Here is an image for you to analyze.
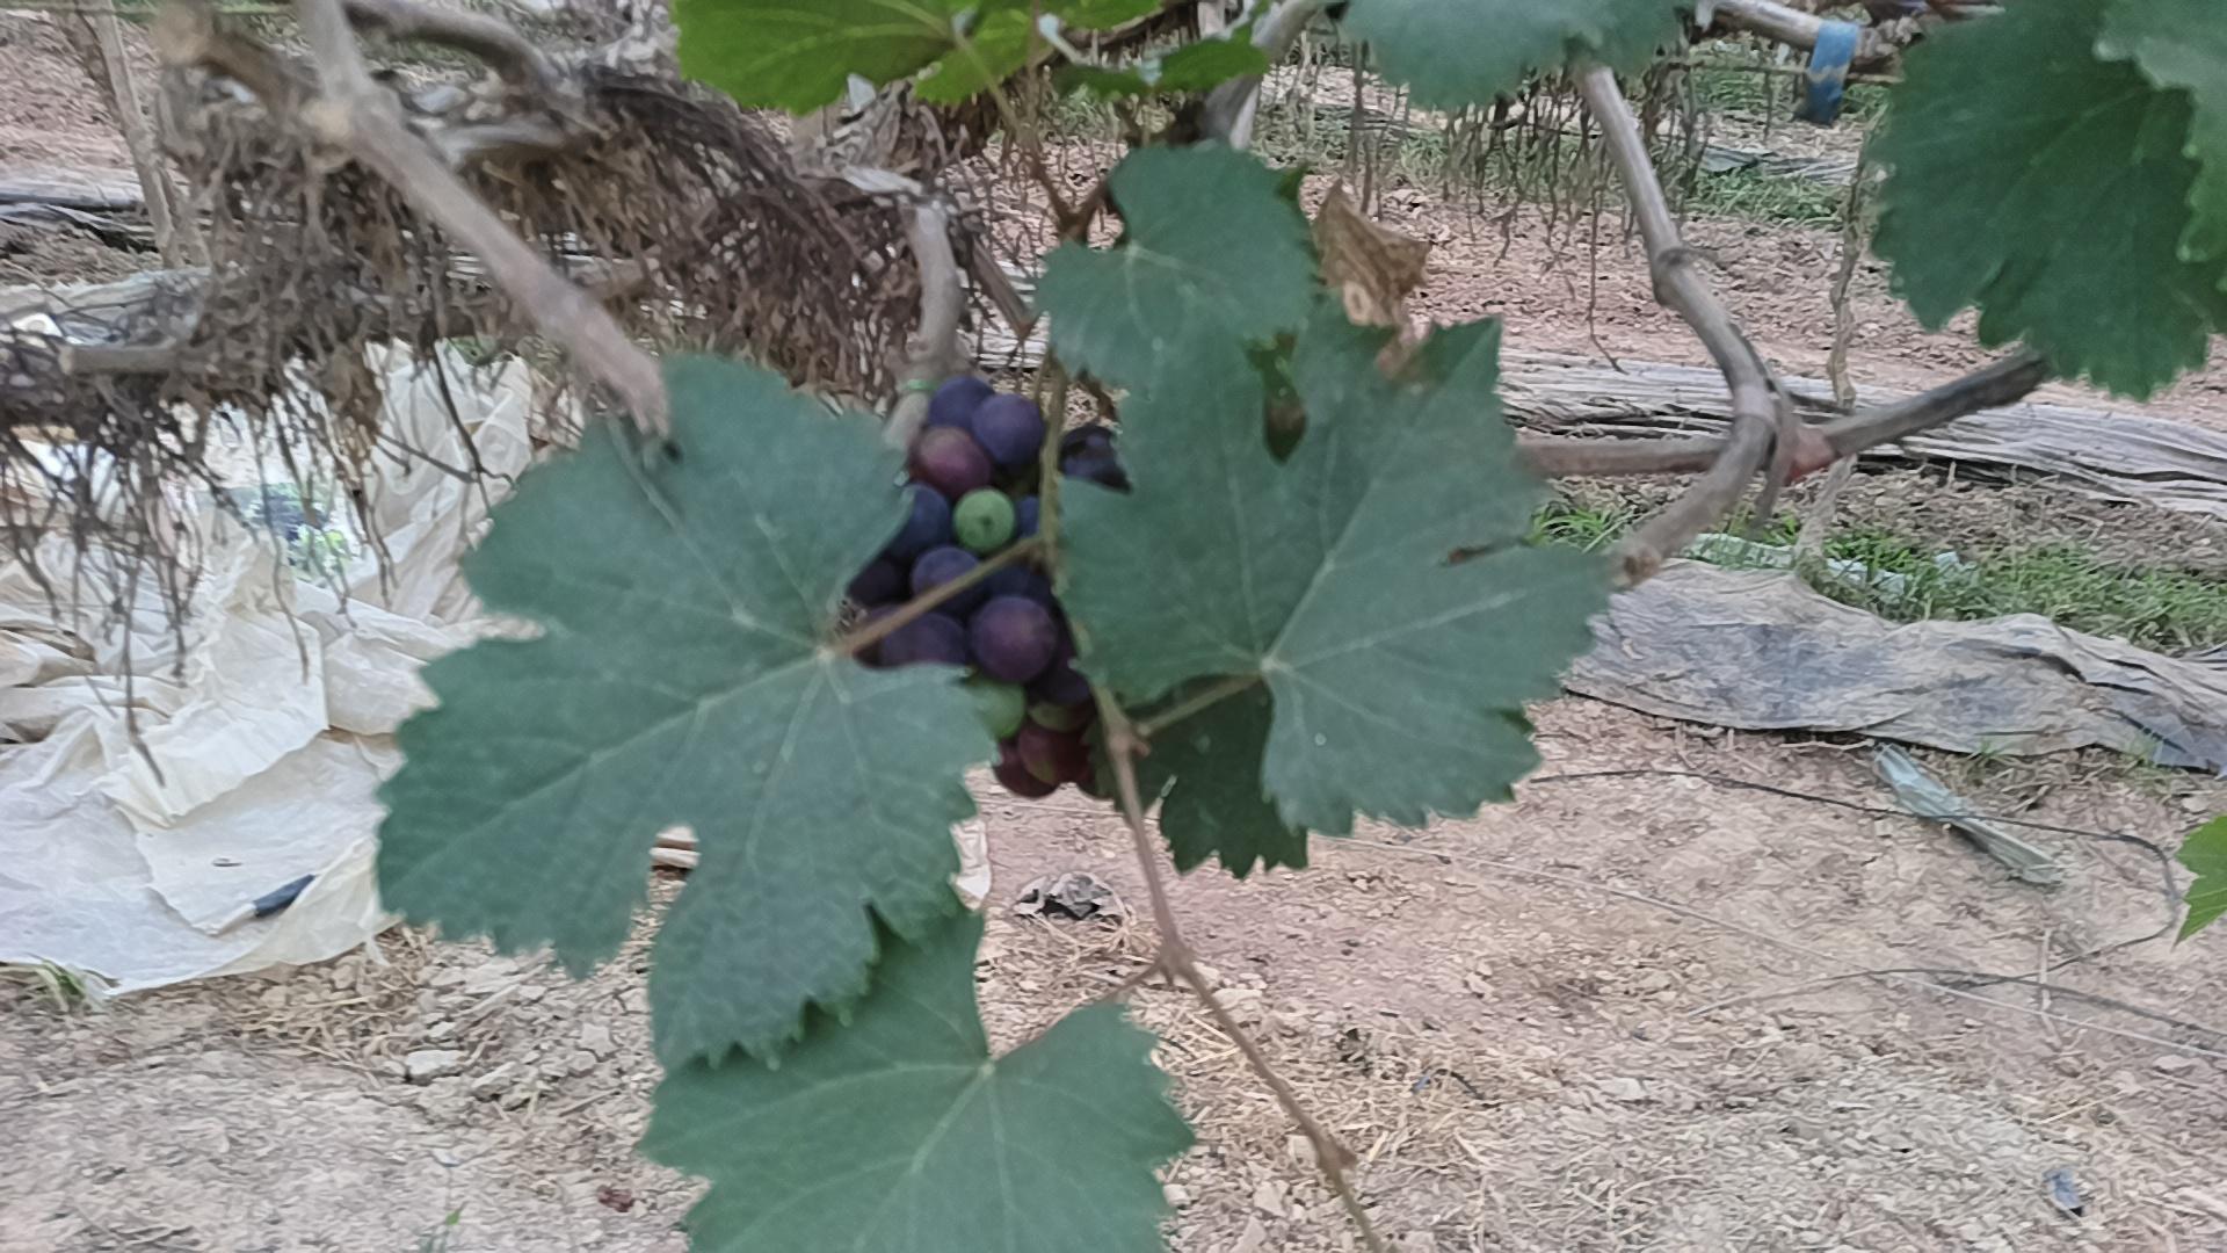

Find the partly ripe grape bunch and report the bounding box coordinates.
[847,376,1127,796]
